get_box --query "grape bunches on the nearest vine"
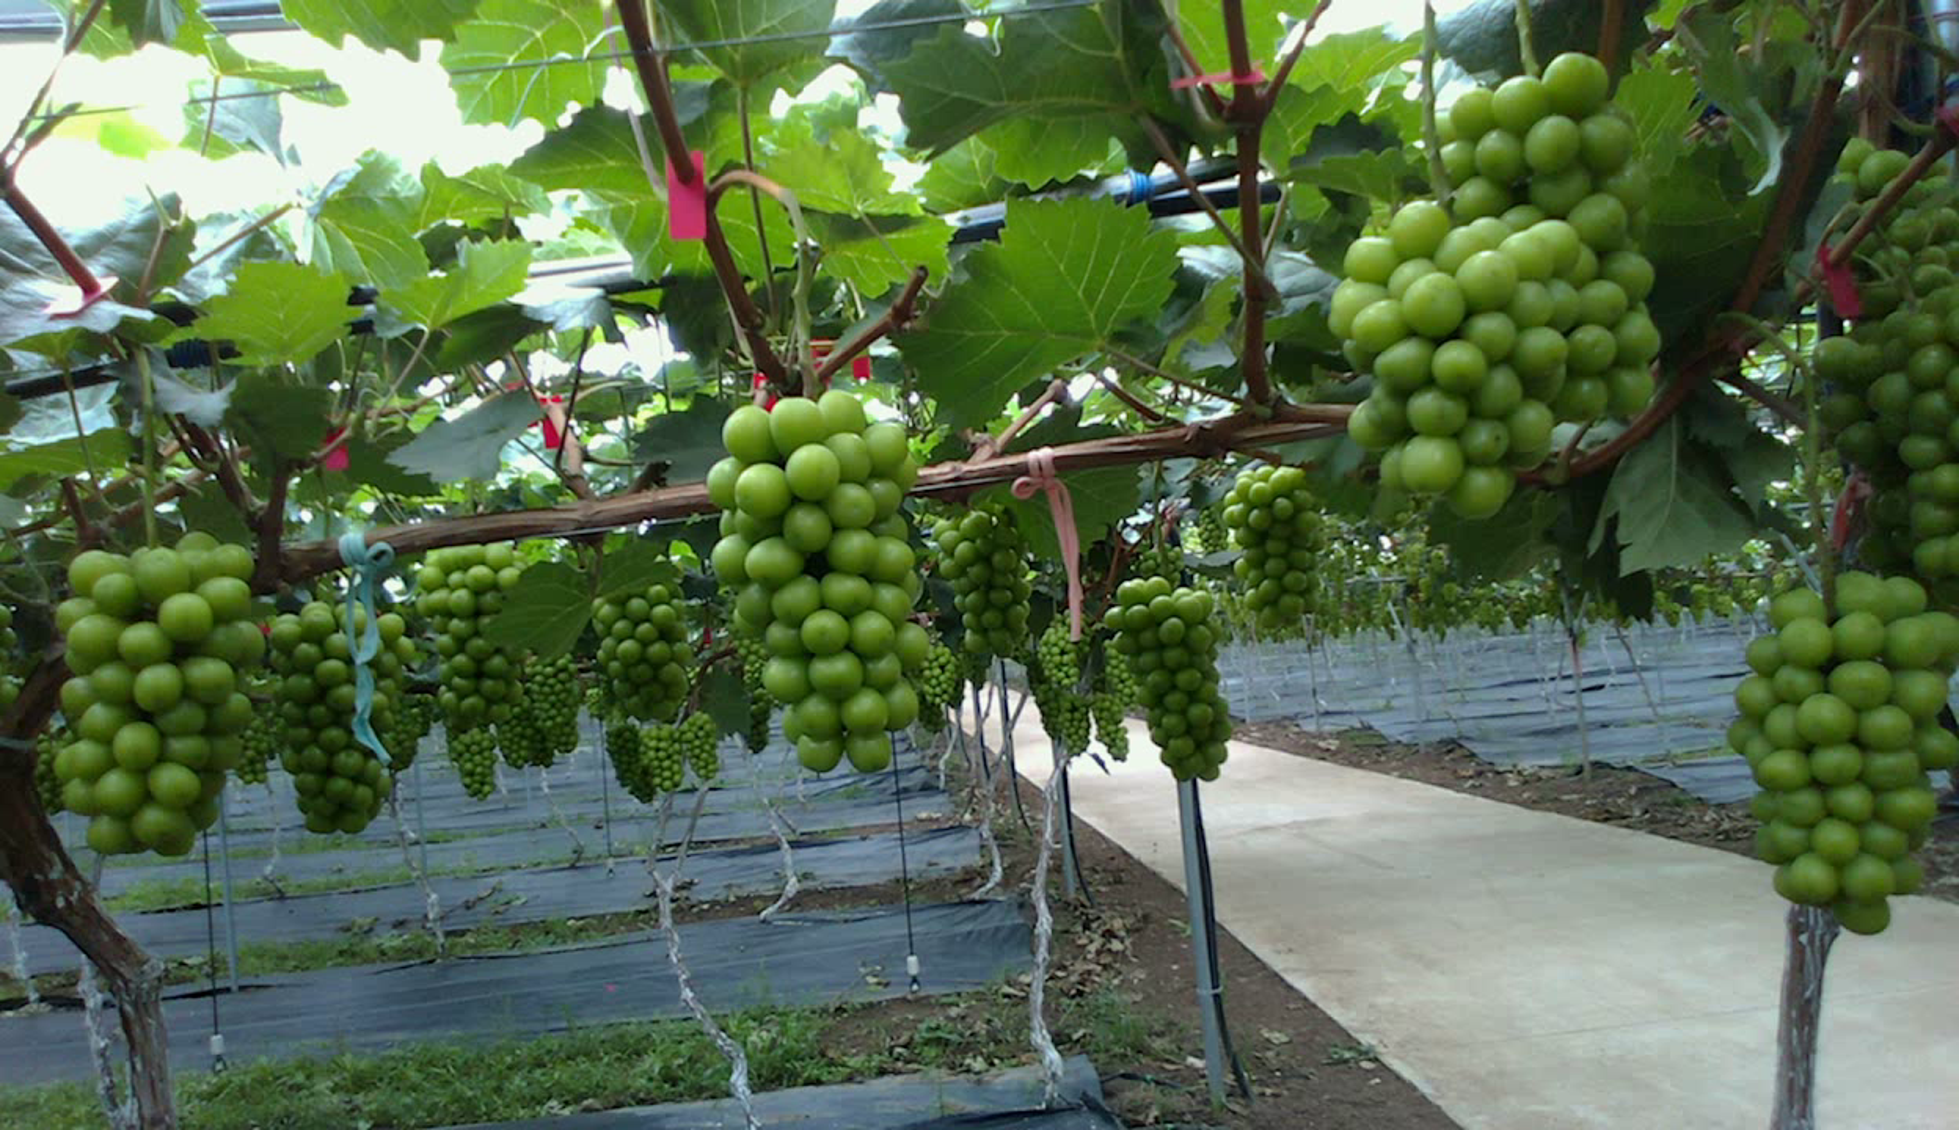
[1436,55,1659,422]
[1725,568,1957,937]
[1844,286,1957,606]
[53,530,265,858]
[1330,199,1579,519]
[706,388,931,772]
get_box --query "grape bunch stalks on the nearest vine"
[1714,311,1840,628]
[1815,201,1915,309]
[1419,0,1458,229]
[129,342,157,549]
[1515,0,1538,77]
[703,171,823,400]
